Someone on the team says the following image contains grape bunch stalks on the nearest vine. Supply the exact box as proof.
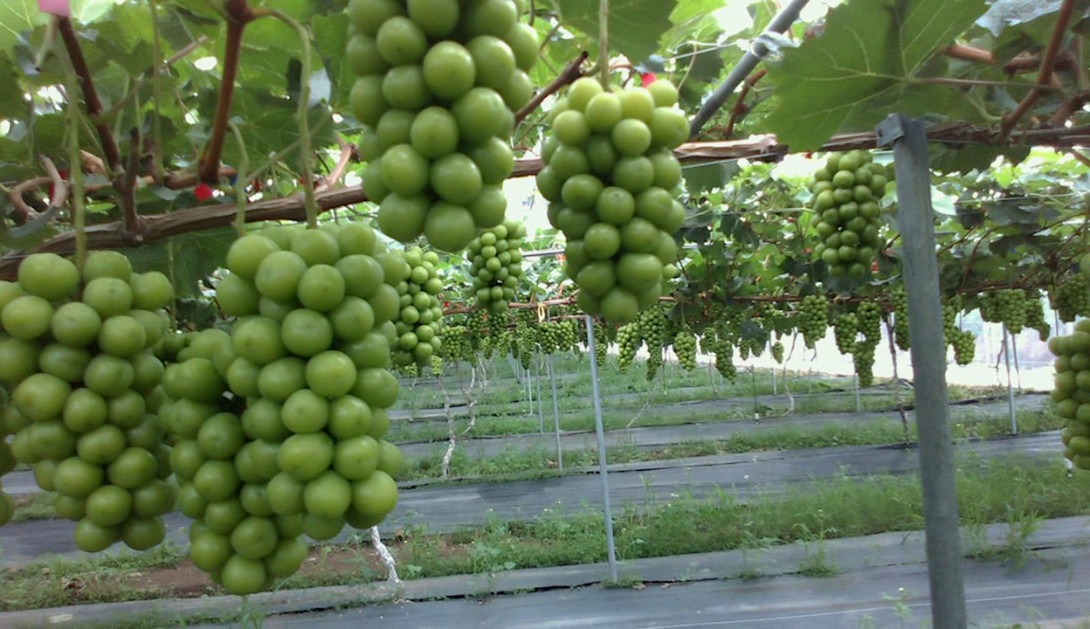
[227,121,247,238]
[598,0,611,92]
[245,5,319,228]
[36,15,86,303]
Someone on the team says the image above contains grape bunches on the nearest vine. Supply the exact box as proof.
[535,77,692,325]
[217,221,407,540]
[0,249,180,554]
[152,328,308,596]
[346,0,540,252]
